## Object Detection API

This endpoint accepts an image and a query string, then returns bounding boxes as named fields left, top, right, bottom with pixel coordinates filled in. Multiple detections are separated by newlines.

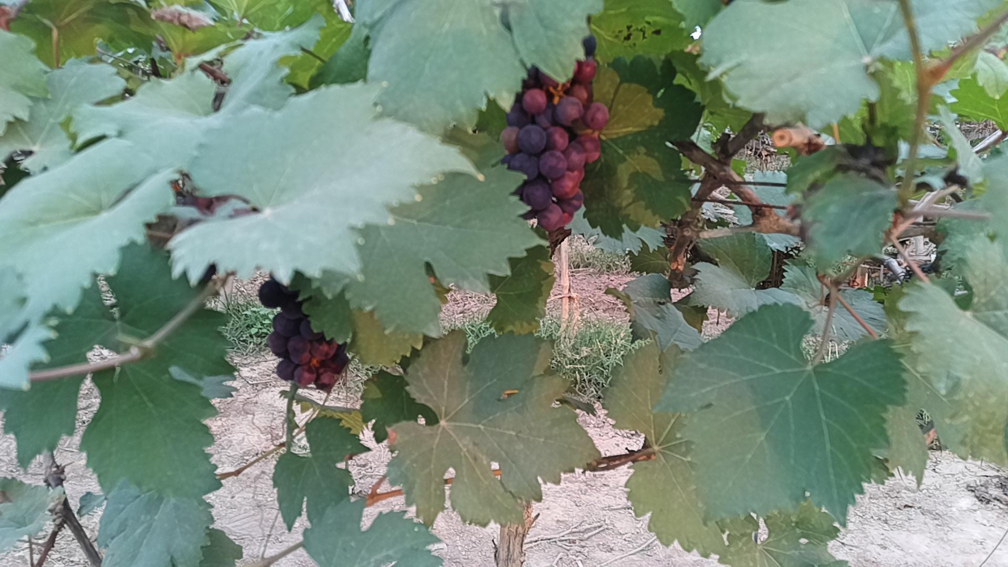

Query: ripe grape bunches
left=258, top=278, right=349, bottom=393
left=501, top=35, right=608, bottom=232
